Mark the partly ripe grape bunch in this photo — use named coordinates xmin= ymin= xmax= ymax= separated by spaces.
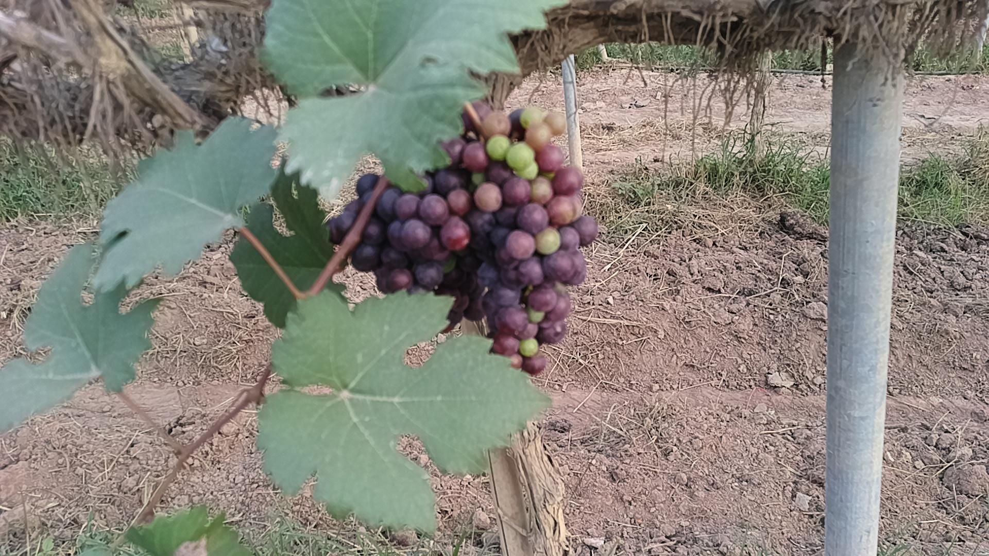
xmin=328 ymin=102 xmax=598 ymax=375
